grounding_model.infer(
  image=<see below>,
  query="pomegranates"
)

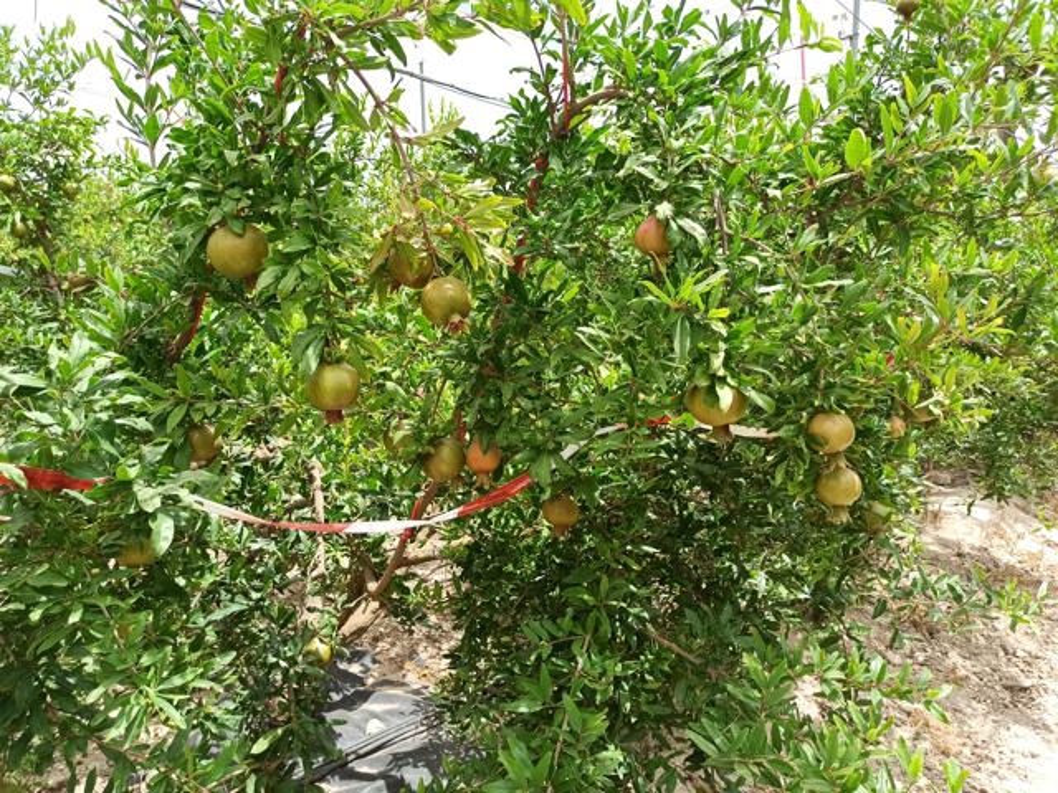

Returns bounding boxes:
[207,223,268,291]
[542,496,579,540]
[422,439,466,491]
[807,411,856,472]
[304,636,332,667]
[385,254,435,292]
[306,362,360,426]
[116,547,154,567]
[465,439,503,487]
[188,425,223,463]
[420,276,471,334]
[815,466,863,524]
[886,415,906,438]
[684,383,746,451]
[633,213,673,264]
